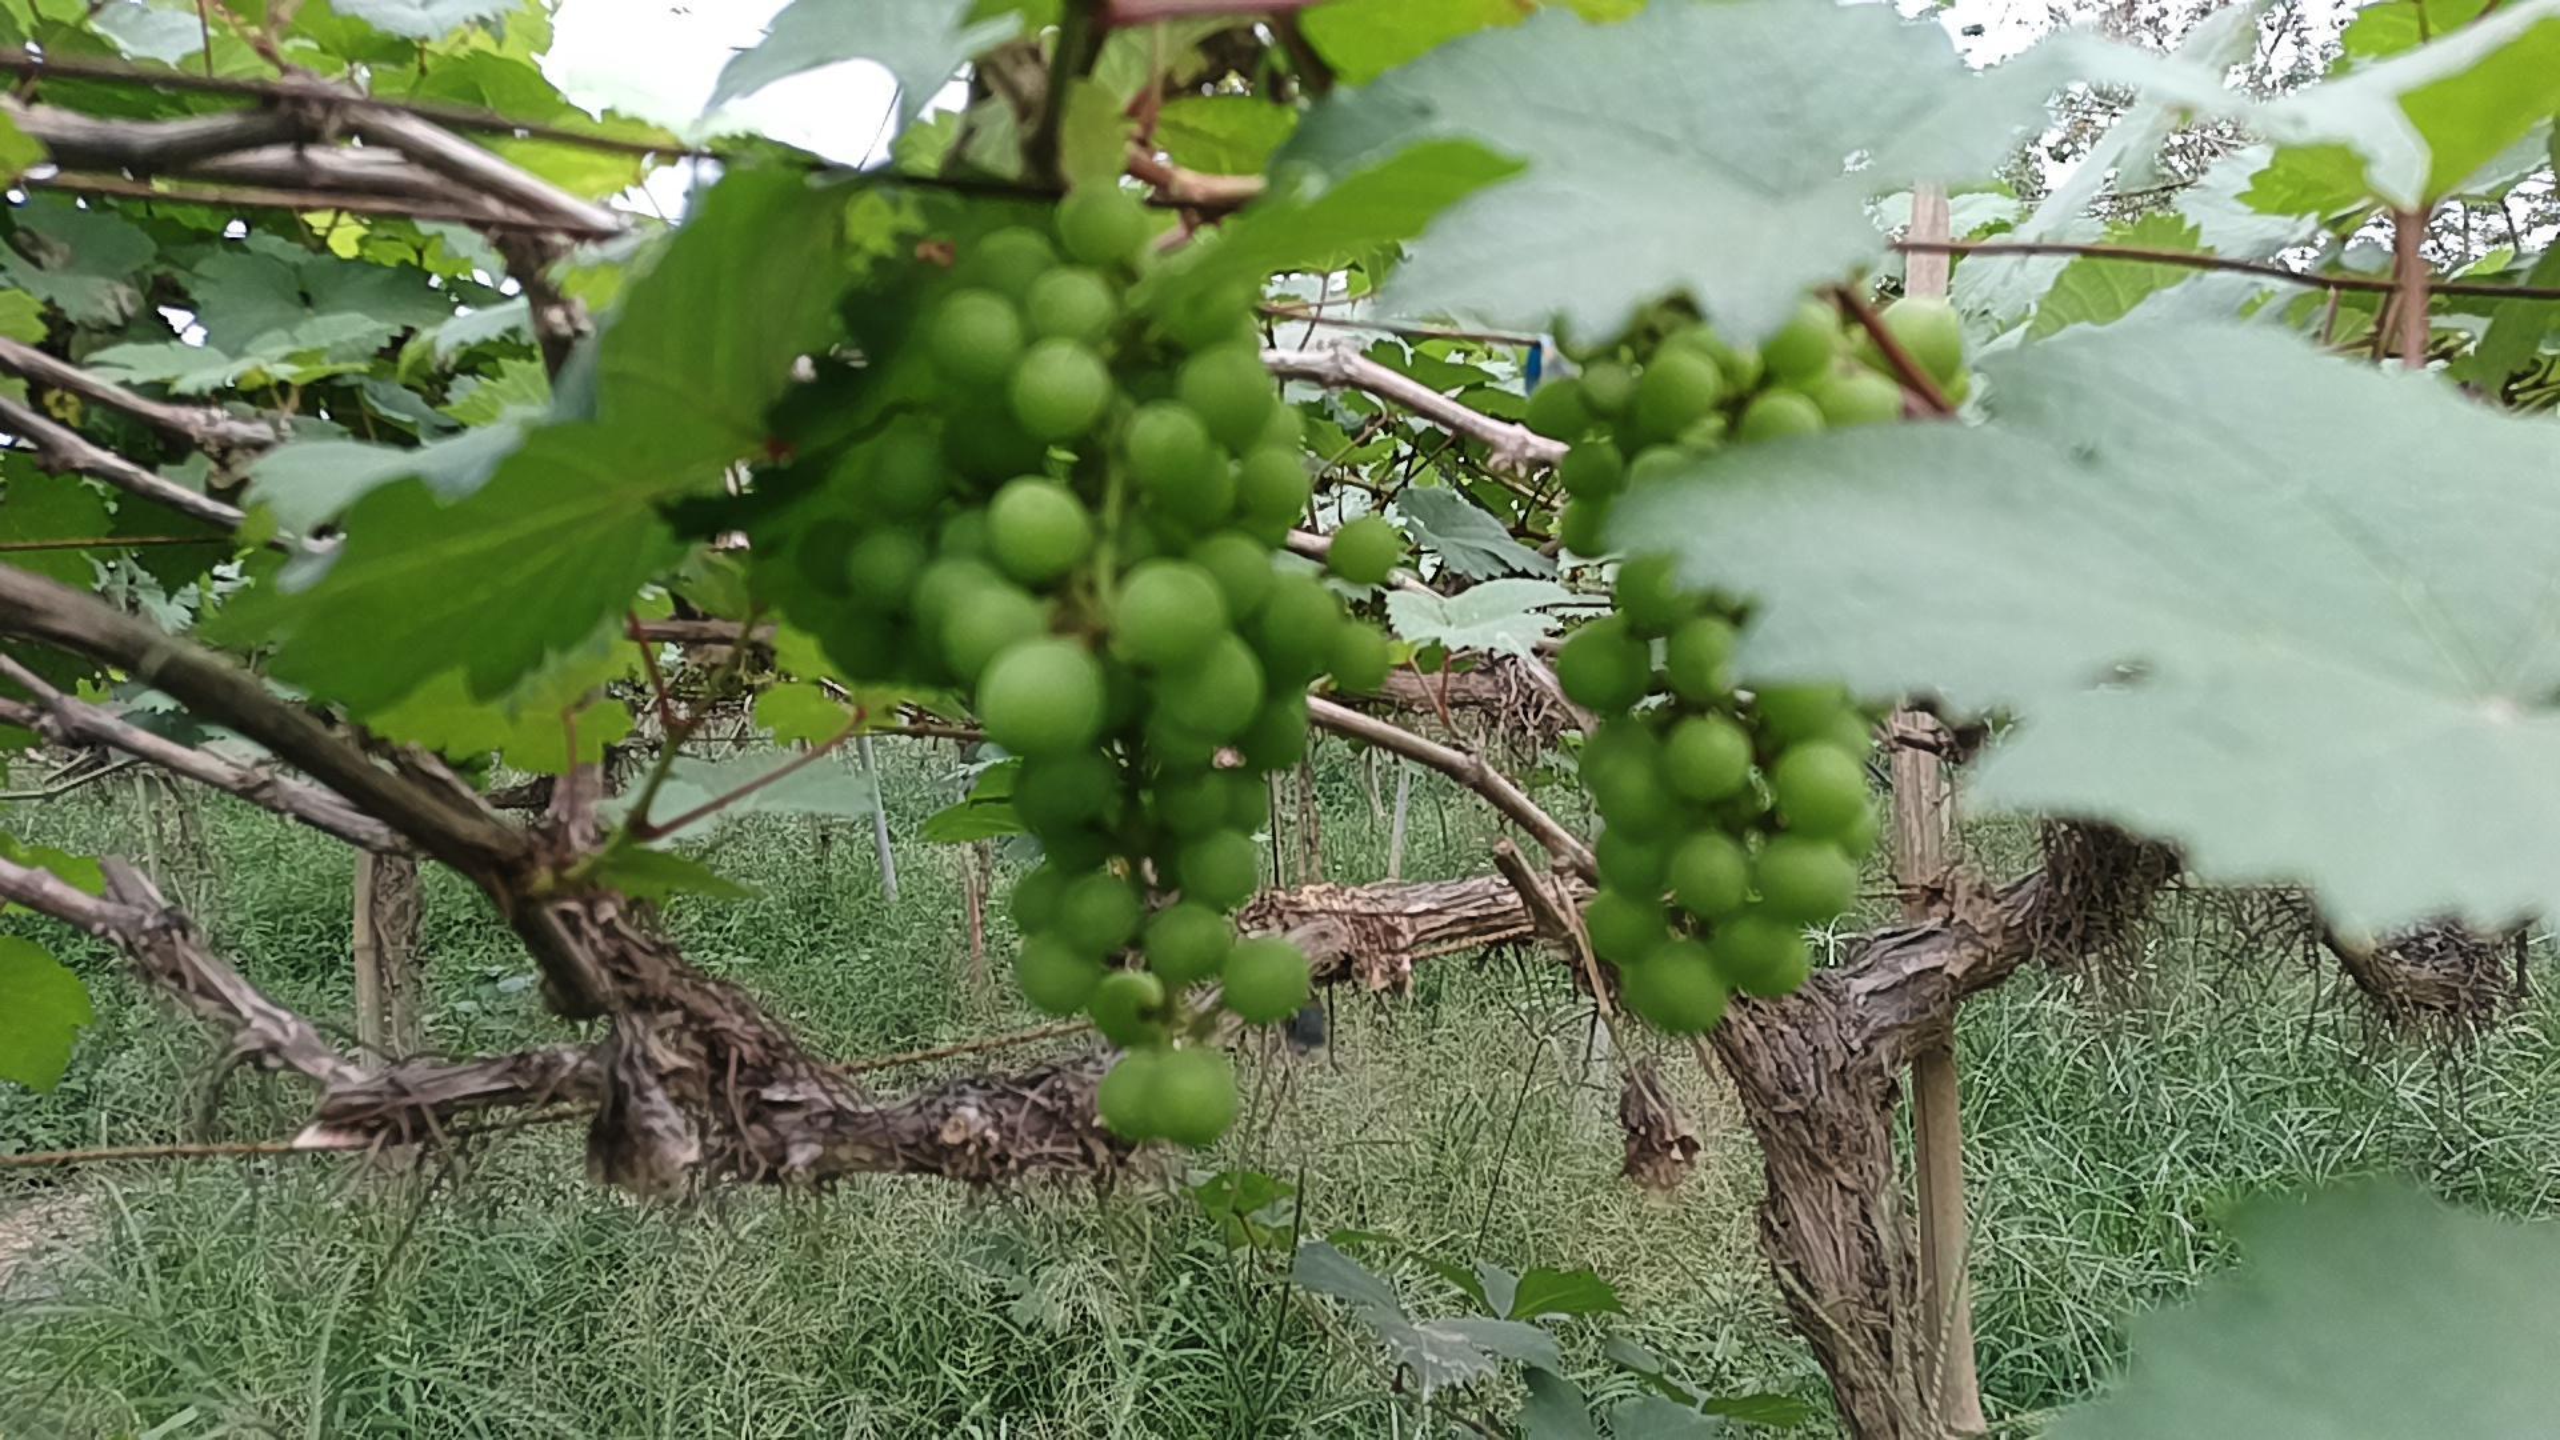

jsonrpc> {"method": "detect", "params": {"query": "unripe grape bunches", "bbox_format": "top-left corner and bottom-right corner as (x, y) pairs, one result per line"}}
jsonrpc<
(801, 188), (1400, 1144)
(1525, 295), (1968, 1032)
